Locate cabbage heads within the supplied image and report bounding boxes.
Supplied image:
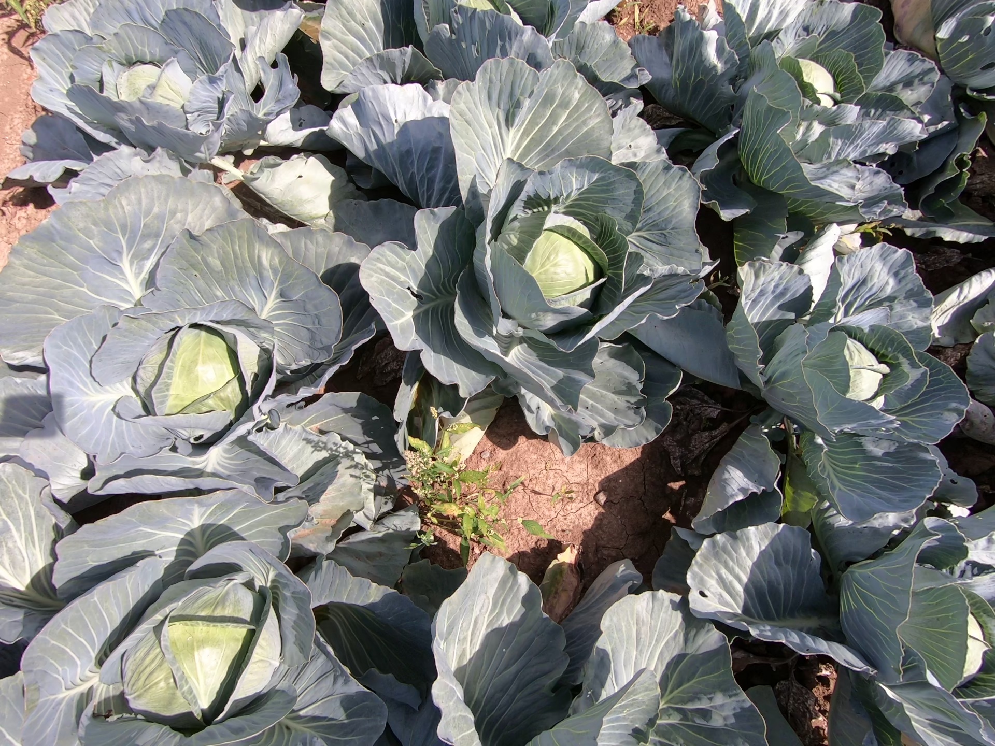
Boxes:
[764,55,841,134]
[879,578,987,688]
[429,1,529,74]
[124,577,277,728]
[795,333,886,421]
[138,323,258,435]
[493,213,597,328]
[115,64,183,120]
